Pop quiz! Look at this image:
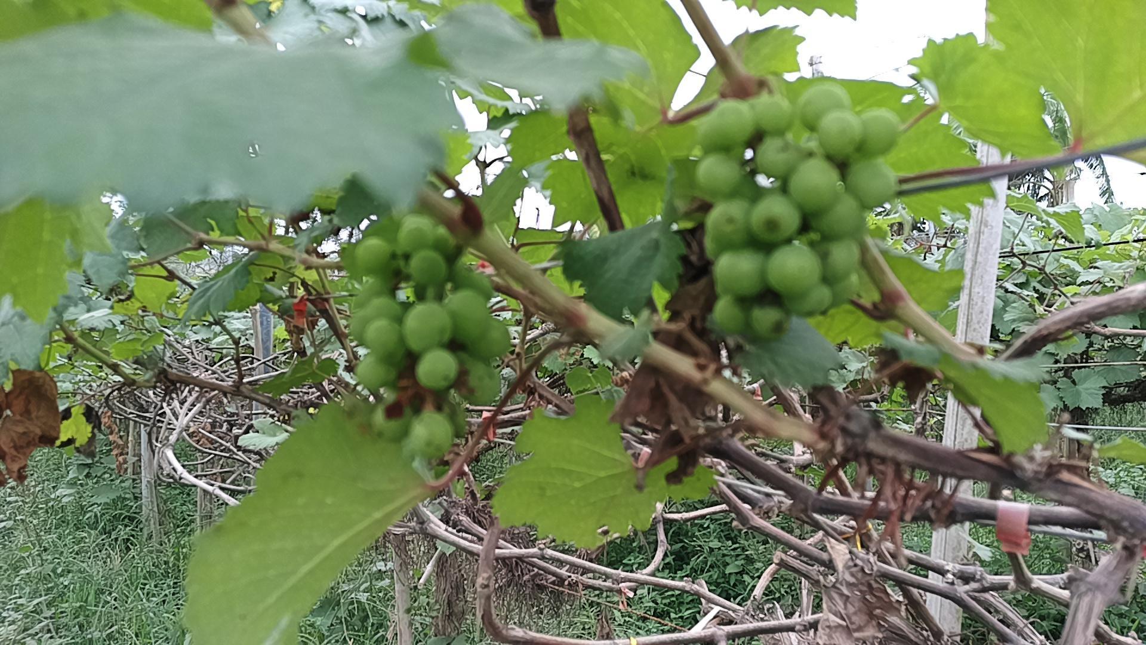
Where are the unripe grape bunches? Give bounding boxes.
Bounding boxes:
[695,83,901,340]
[347,214,510,460]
